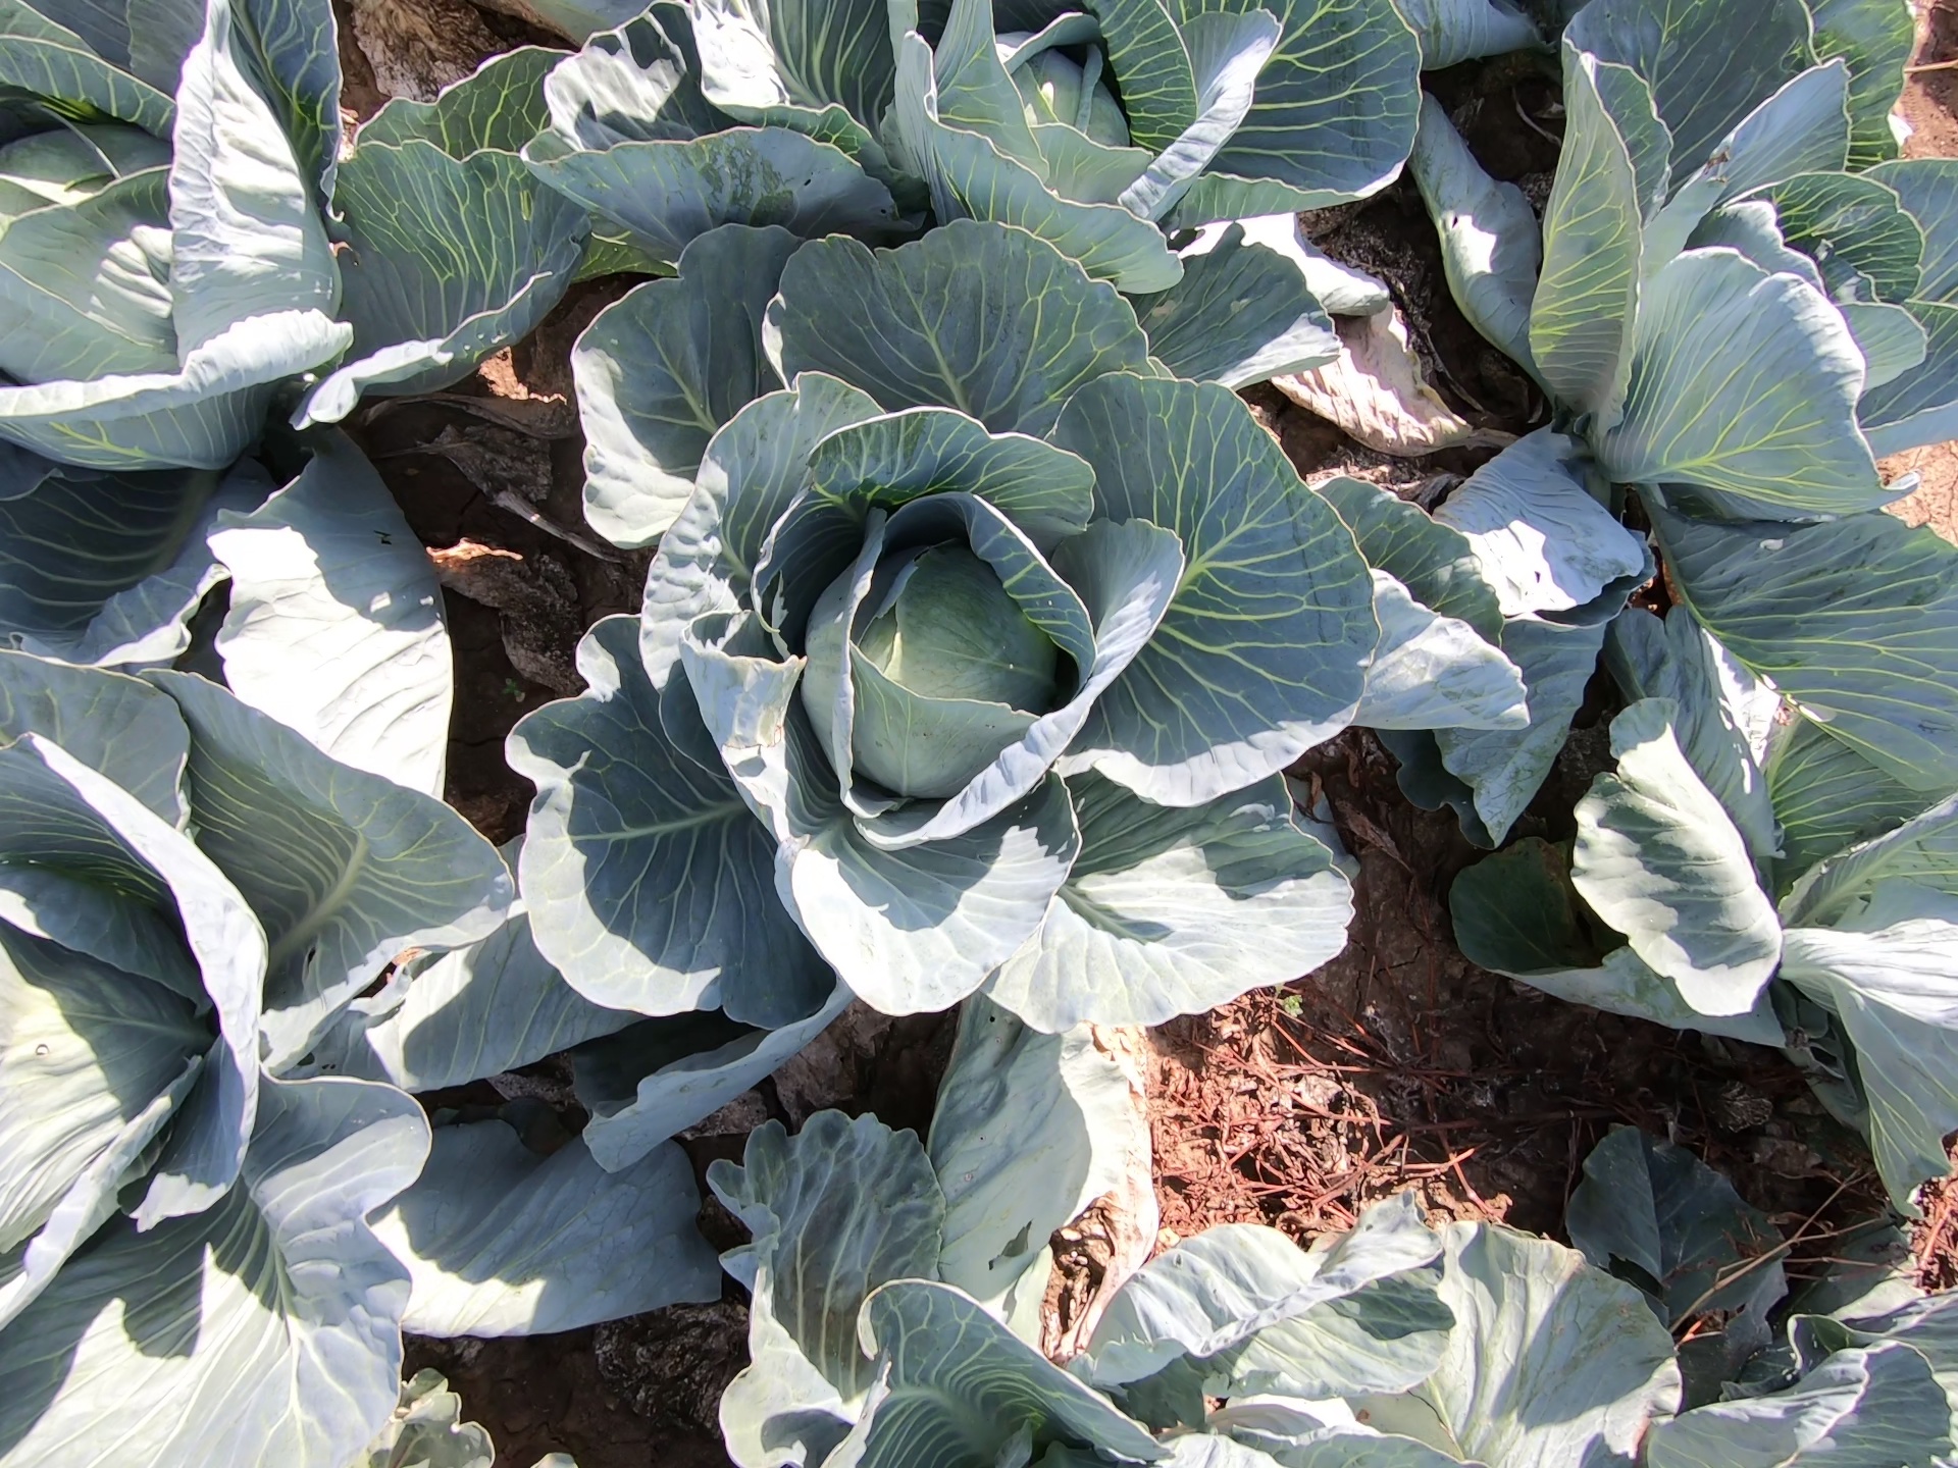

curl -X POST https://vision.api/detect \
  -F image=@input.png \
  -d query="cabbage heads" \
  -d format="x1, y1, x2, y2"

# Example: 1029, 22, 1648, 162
827, 542, 1054, 791
5, 117, 268, 397
3, 946, 183, 1219
960, 40, 1132, 212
